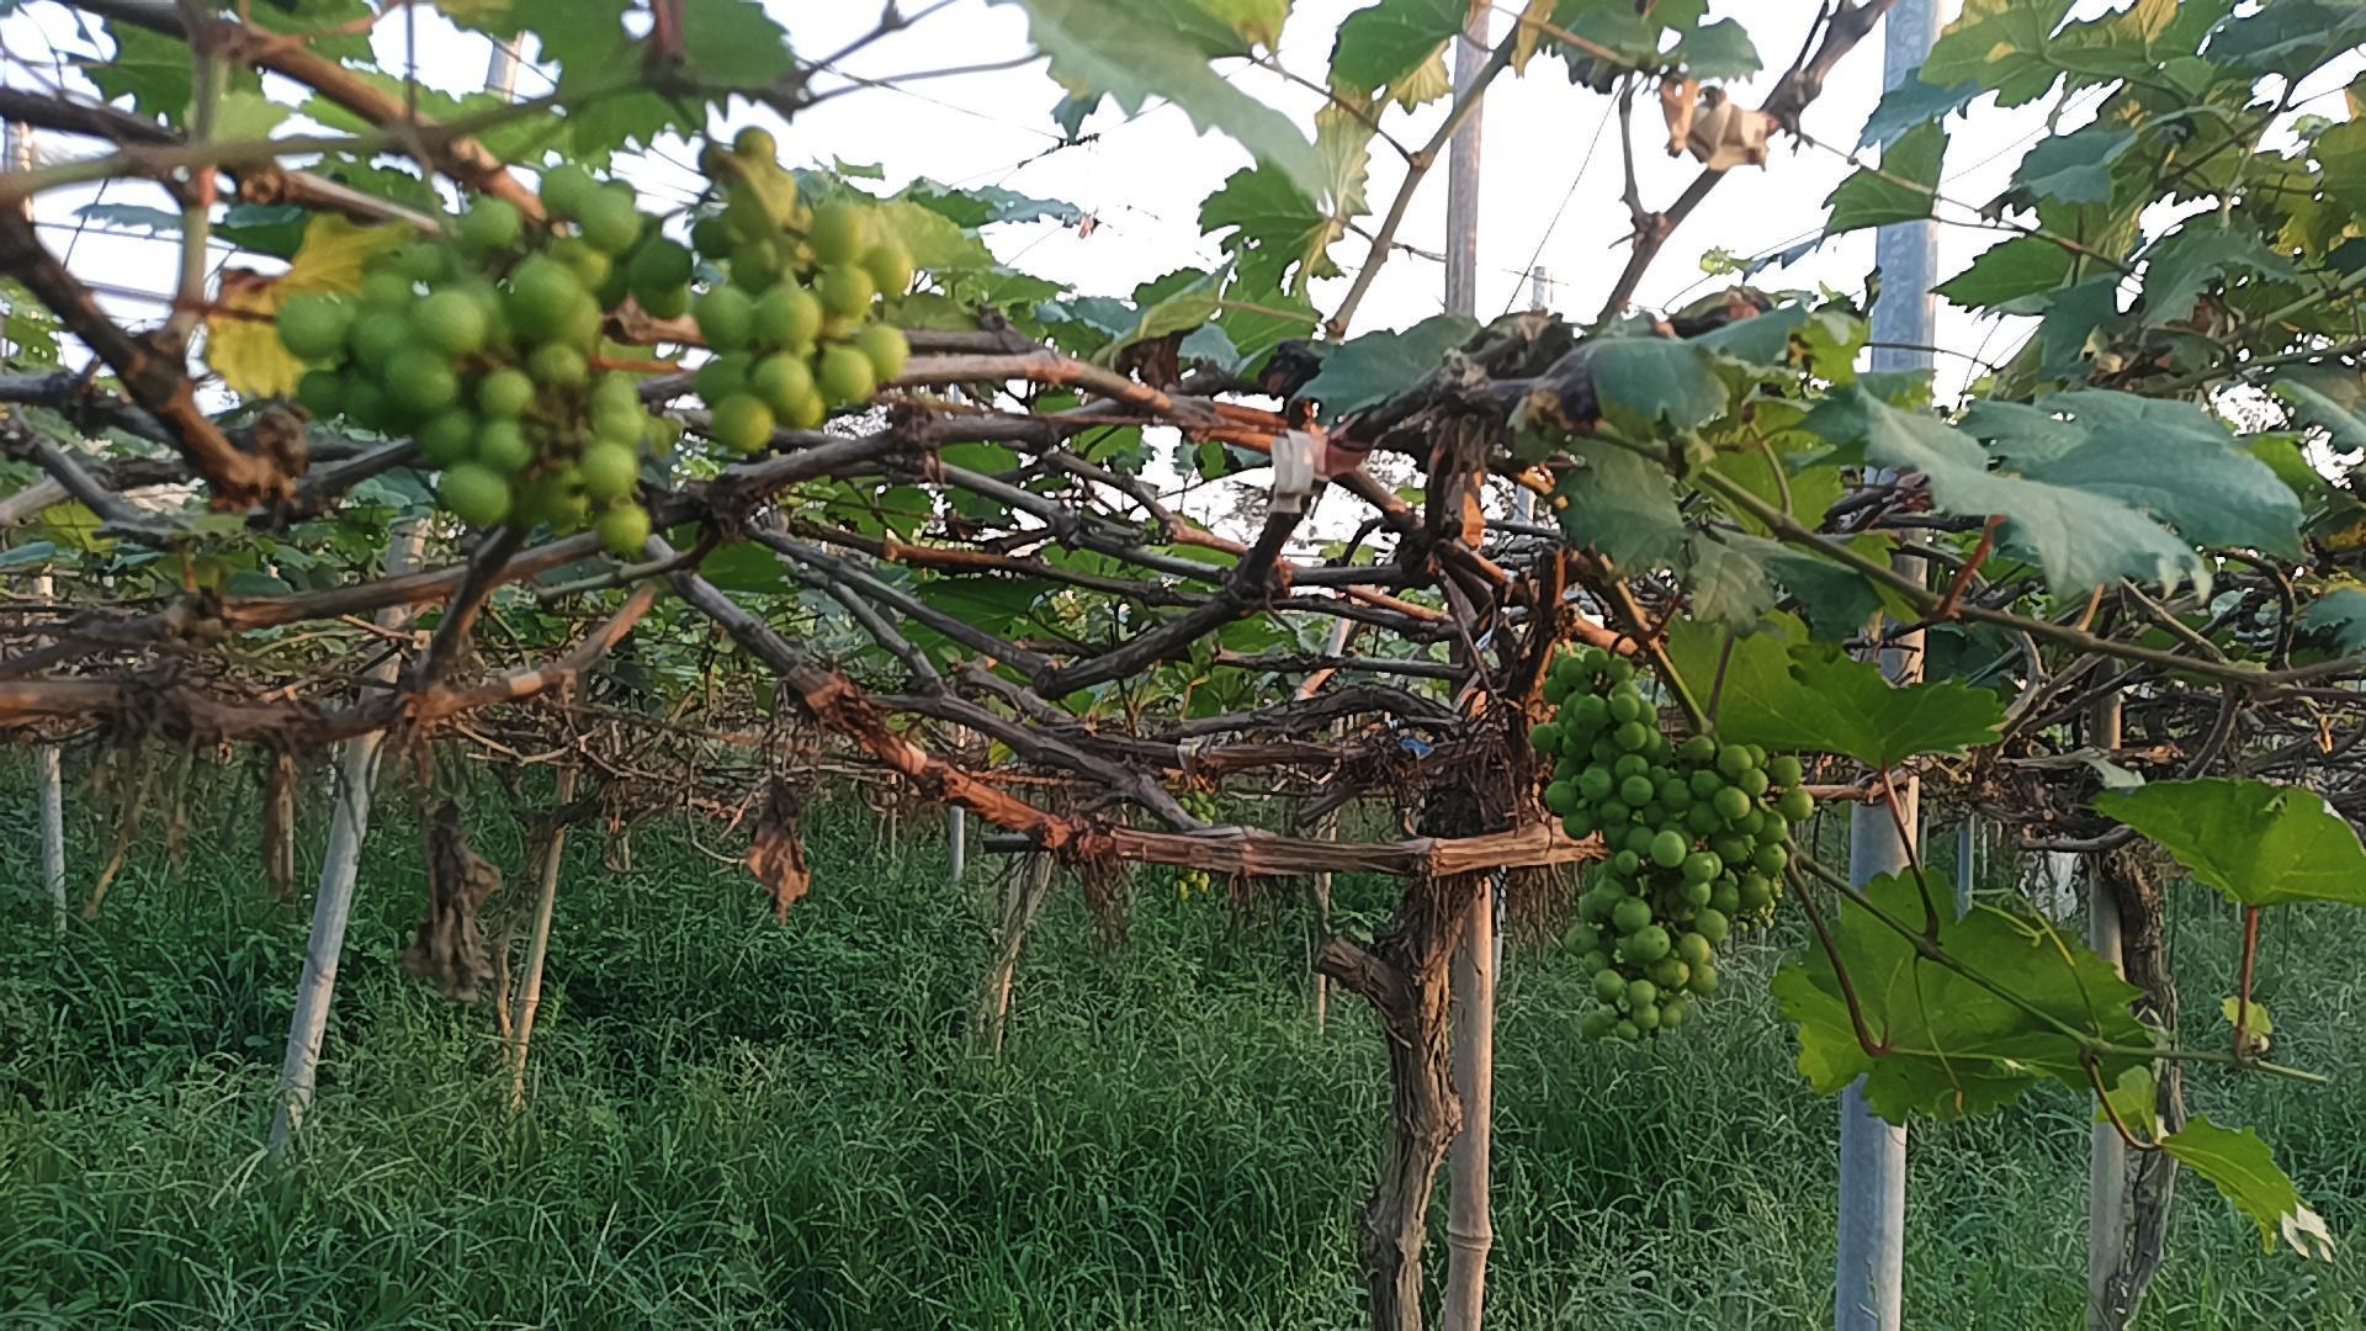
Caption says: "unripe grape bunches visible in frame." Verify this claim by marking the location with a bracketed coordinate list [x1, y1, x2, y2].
[1565, 829, 1728, 1039]
[1532, 648, 1671, 849]
[1638, 735, 1813, 918]
[695, 129, 913, 452]
[260, 168, 689, 560]
[1163, 791, 1215, 900]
